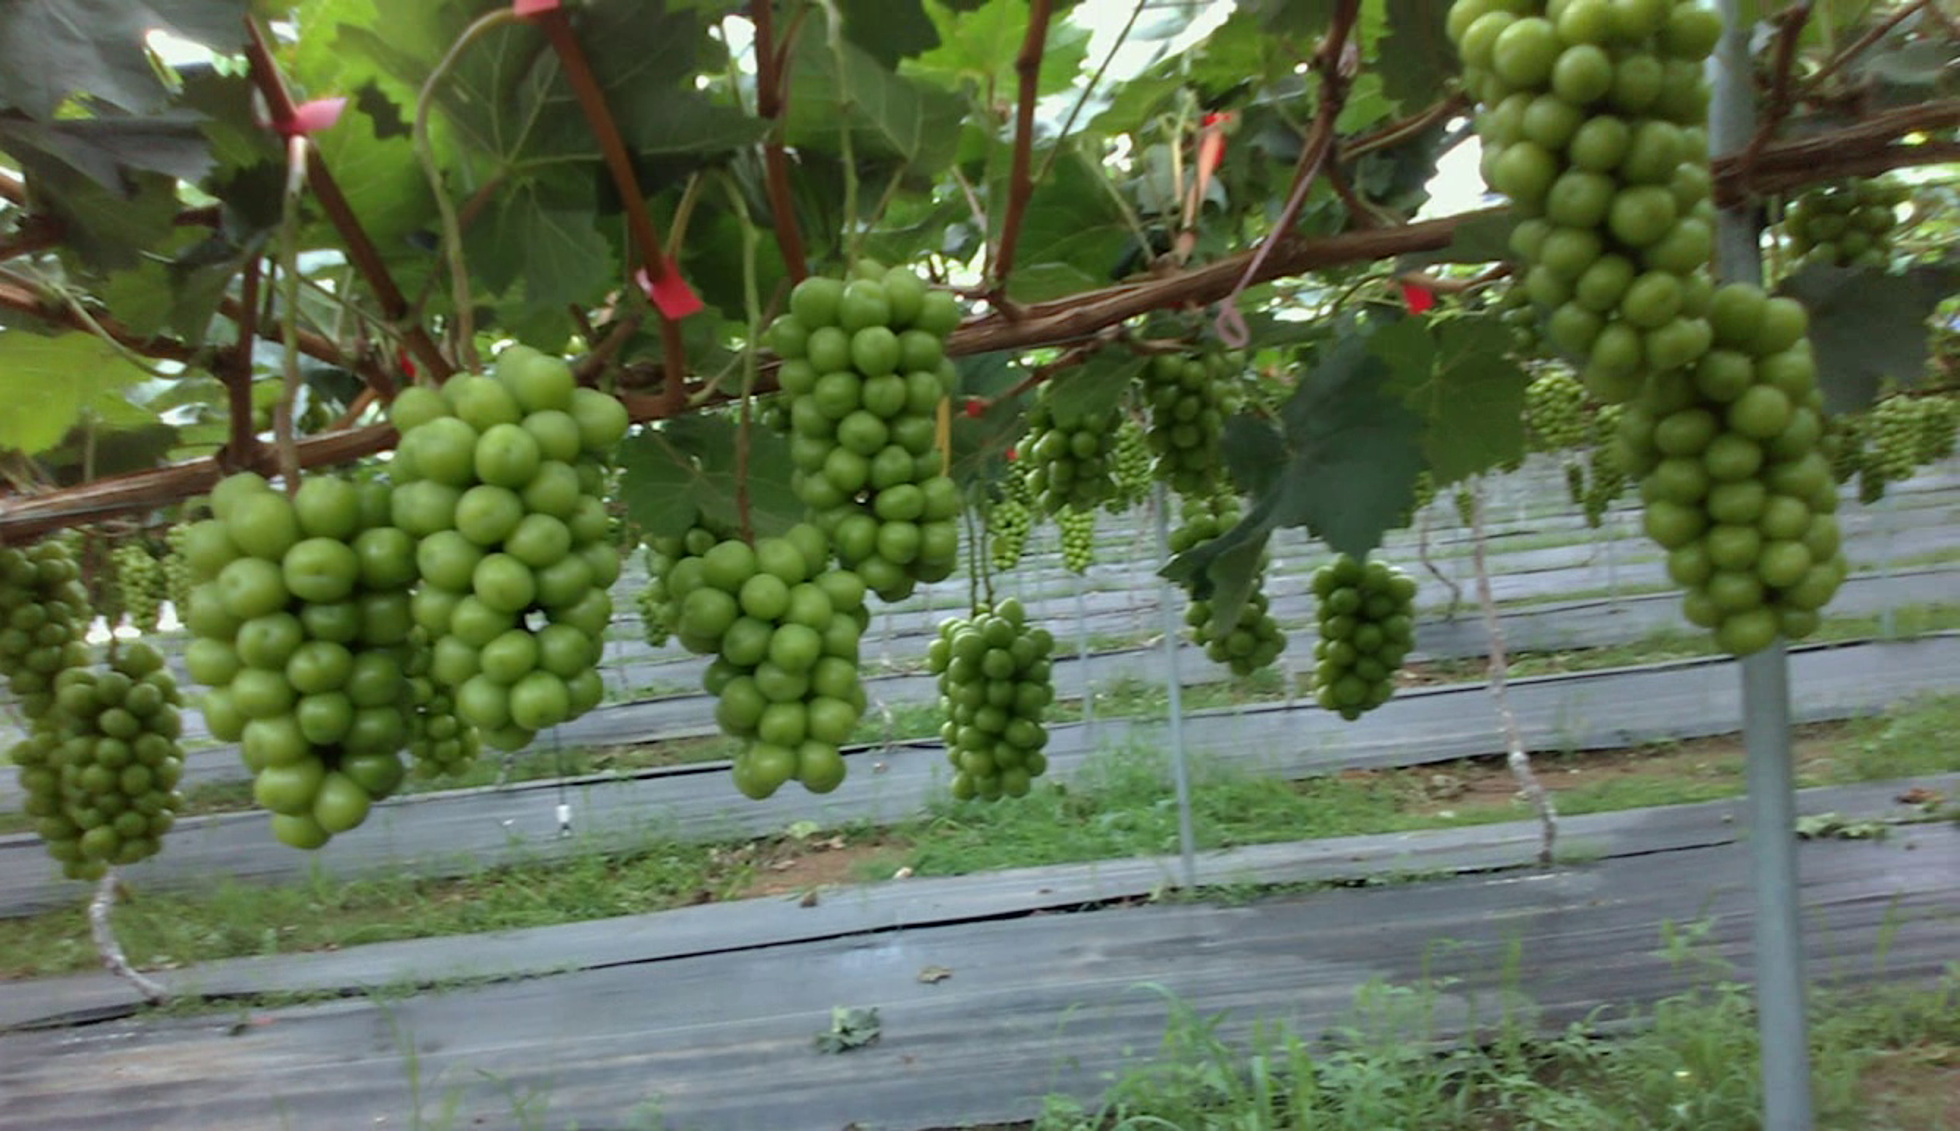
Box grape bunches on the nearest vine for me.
[1611,284,1845,652]
[389,344,627,752]
[667,522,870,798]
[768,256,960,600]
[1446,3,1728,404]
[188,471,418,850]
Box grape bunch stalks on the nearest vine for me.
[415,8,521,371]
[666,165,759,544]
[774,2,861,280]
[275,137,306,495]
